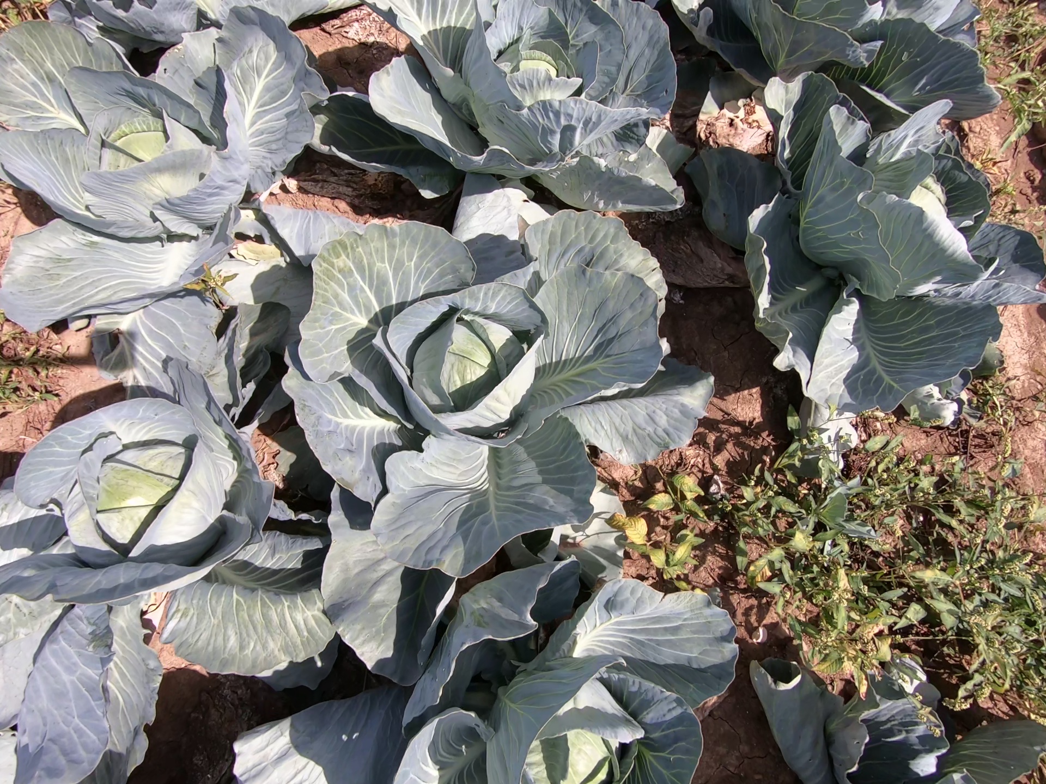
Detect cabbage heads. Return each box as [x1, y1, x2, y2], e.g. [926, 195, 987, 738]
[495, 52, 558, 107]
[868, 171, 950, 263]
[66, 446, 223, 572]
[496, 672, 628, 782]
[100, 125, 210, 228]
[417, 323, 527, 431]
